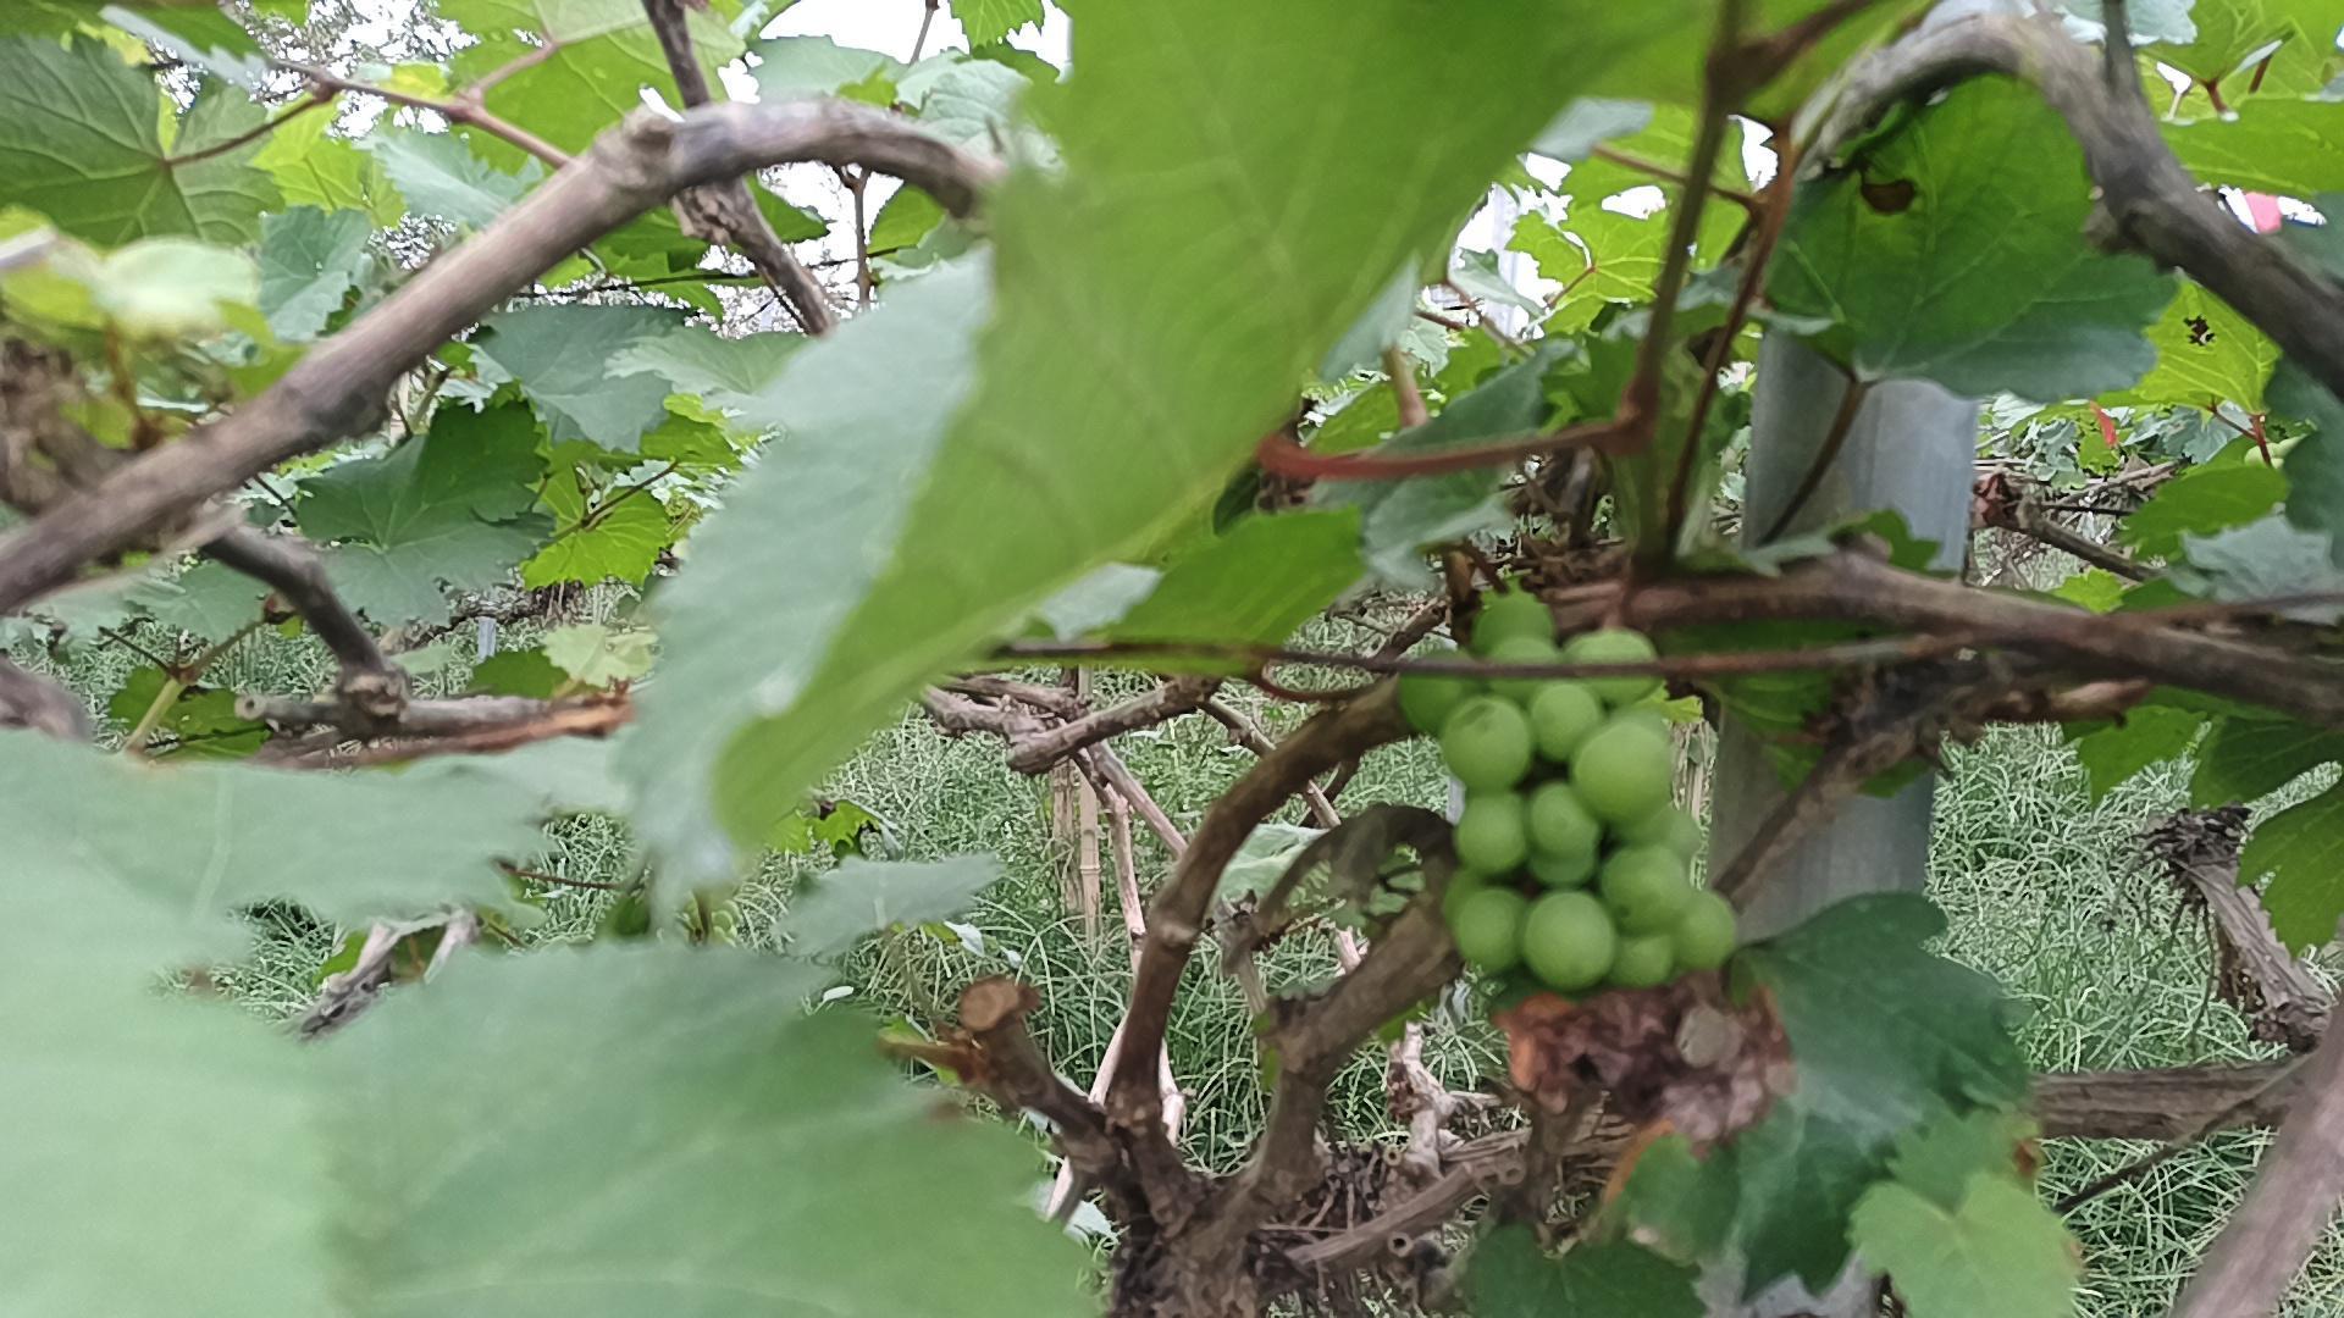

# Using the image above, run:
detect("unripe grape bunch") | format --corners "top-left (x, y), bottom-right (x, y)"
top-left (1405, 586), bottom-right (1735, 987)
